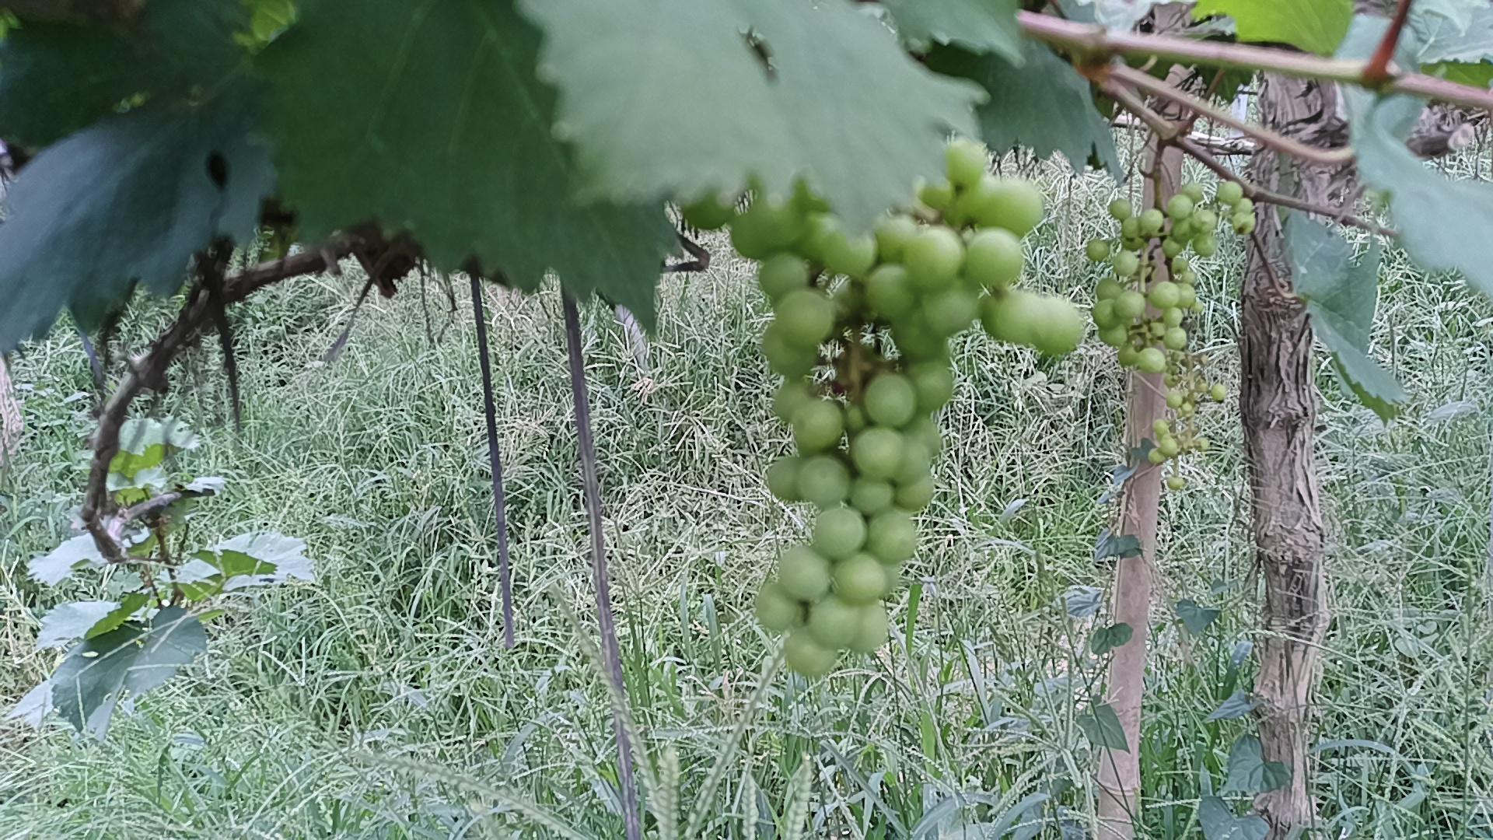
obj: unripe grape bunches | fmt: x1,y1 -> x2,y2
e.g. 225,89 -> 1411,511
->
729,141 -> 1082,676
1086,182 -> 1256,488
